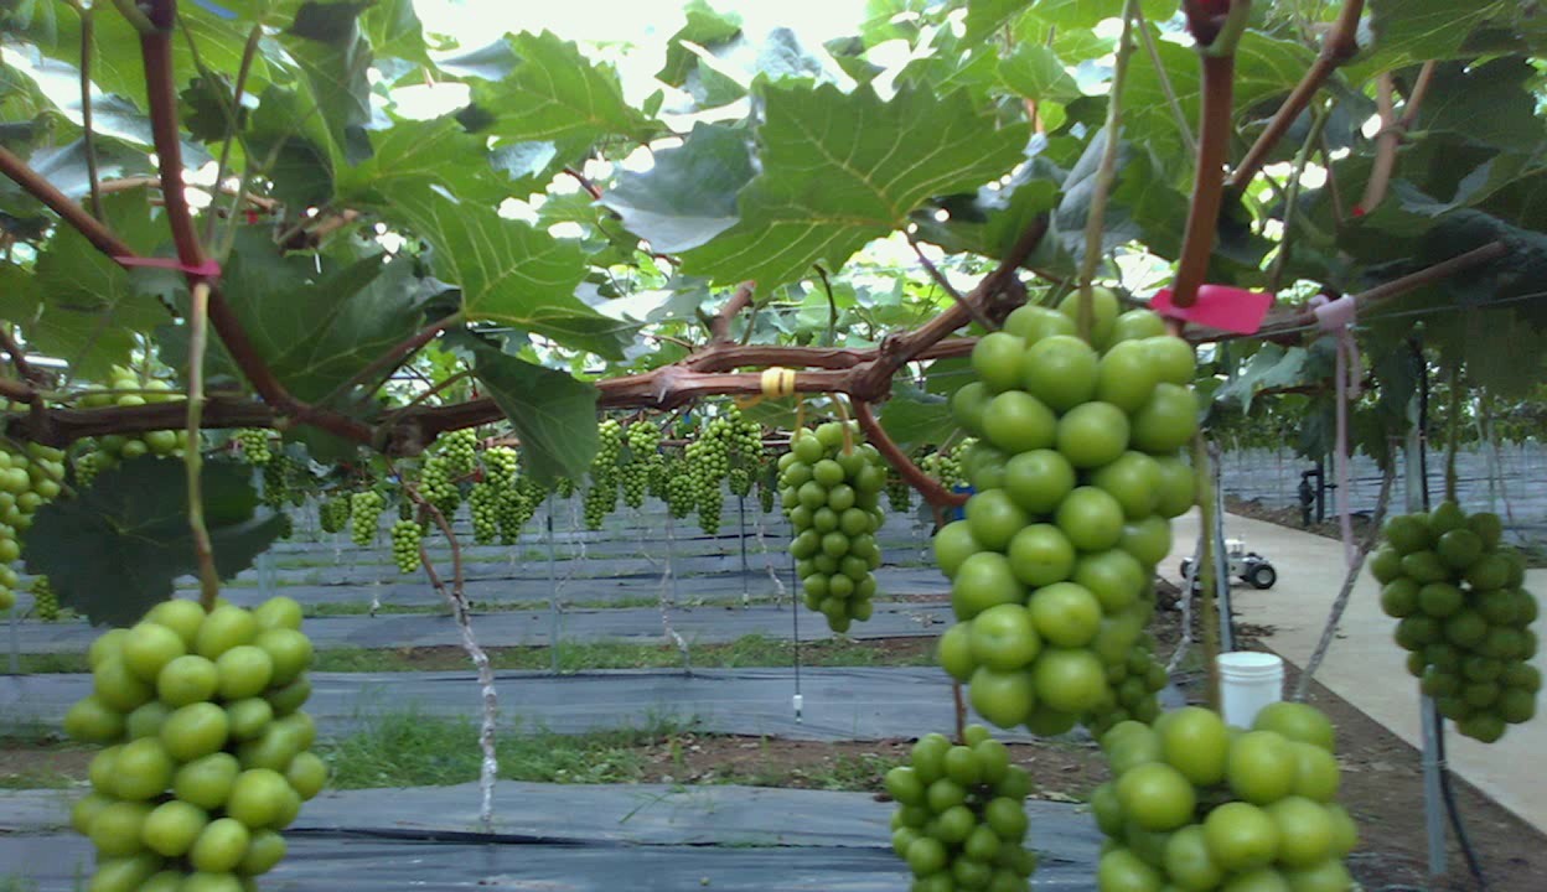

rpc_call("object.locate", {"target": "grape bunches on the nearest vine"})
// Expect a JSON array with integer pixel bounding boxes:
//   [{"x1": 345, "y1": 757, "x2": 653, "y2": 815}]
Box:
[
  {"x1": 67, "y1": 597, "x2": 324, "y2": 891},
  {"x1": 1091, "y1": 700, "x2": 1361, "y2": 891},
  {"x1": 931, "y1": 285, "x2": 1199, "y2": 740}
]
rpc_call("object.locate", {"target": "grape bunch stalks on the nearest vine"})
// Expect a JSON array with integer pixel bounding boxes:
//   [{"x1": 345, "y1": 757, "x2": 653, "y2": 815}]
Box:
[
  {"x1": 186, "y1": 285, "x2": 217, "y2": 612},
  {"x1": 1190, "y1": 430, "x2": 1221, "y2": 714},
  {"x1": 1076, "y1": 1, "x2": 1138, "y2": 341}
]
